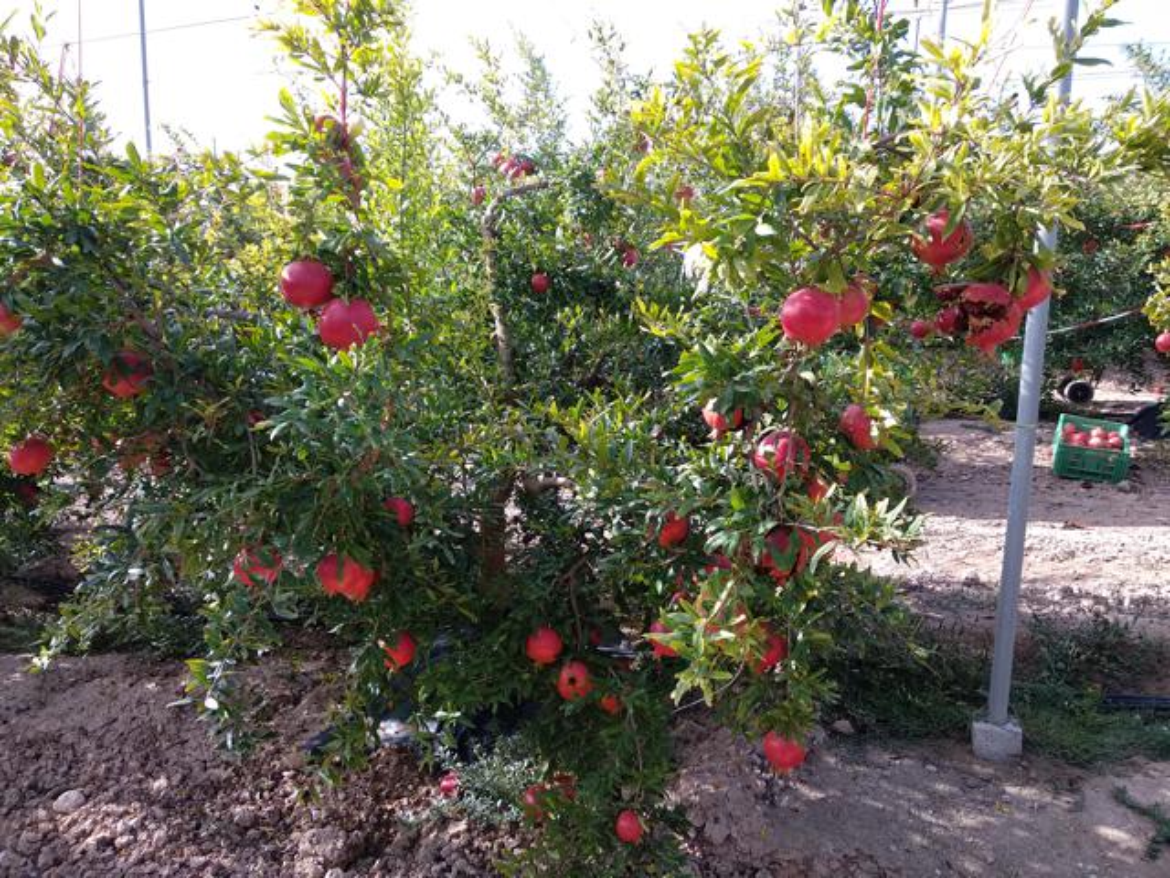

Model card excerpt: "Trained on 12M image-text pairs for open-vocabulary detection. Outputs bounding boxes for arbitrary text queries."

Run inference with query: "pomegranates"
[598,695,623,715]
[526,626,563,664]
[909,318,929,338]
[647,620,680,660]
[658,512,689,547]
[760,525,808,585]
[614,807,643,847]
[1016,267,1049,309]
[530,273,552,293]
[278,258,336,309]
[753,428,812,485]
[384,631,417,669]
[839,402,877,450]
[102,351,146,397]
[0,300,20,337]
[318,296,378,349]
[777,287,841,344]
[234,551,282,585]
[318,552,375,600]
[934,305,958,335]
[556,658,590,699]
[795,527,835,554]
[702,402,744,441]
[954,284,1020,353]
[9,435,53,476]
[834,284,868,327]
[755,637,788,673]
[382,496,413,529]
[762,728,806,777]
[912,210,973,276]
